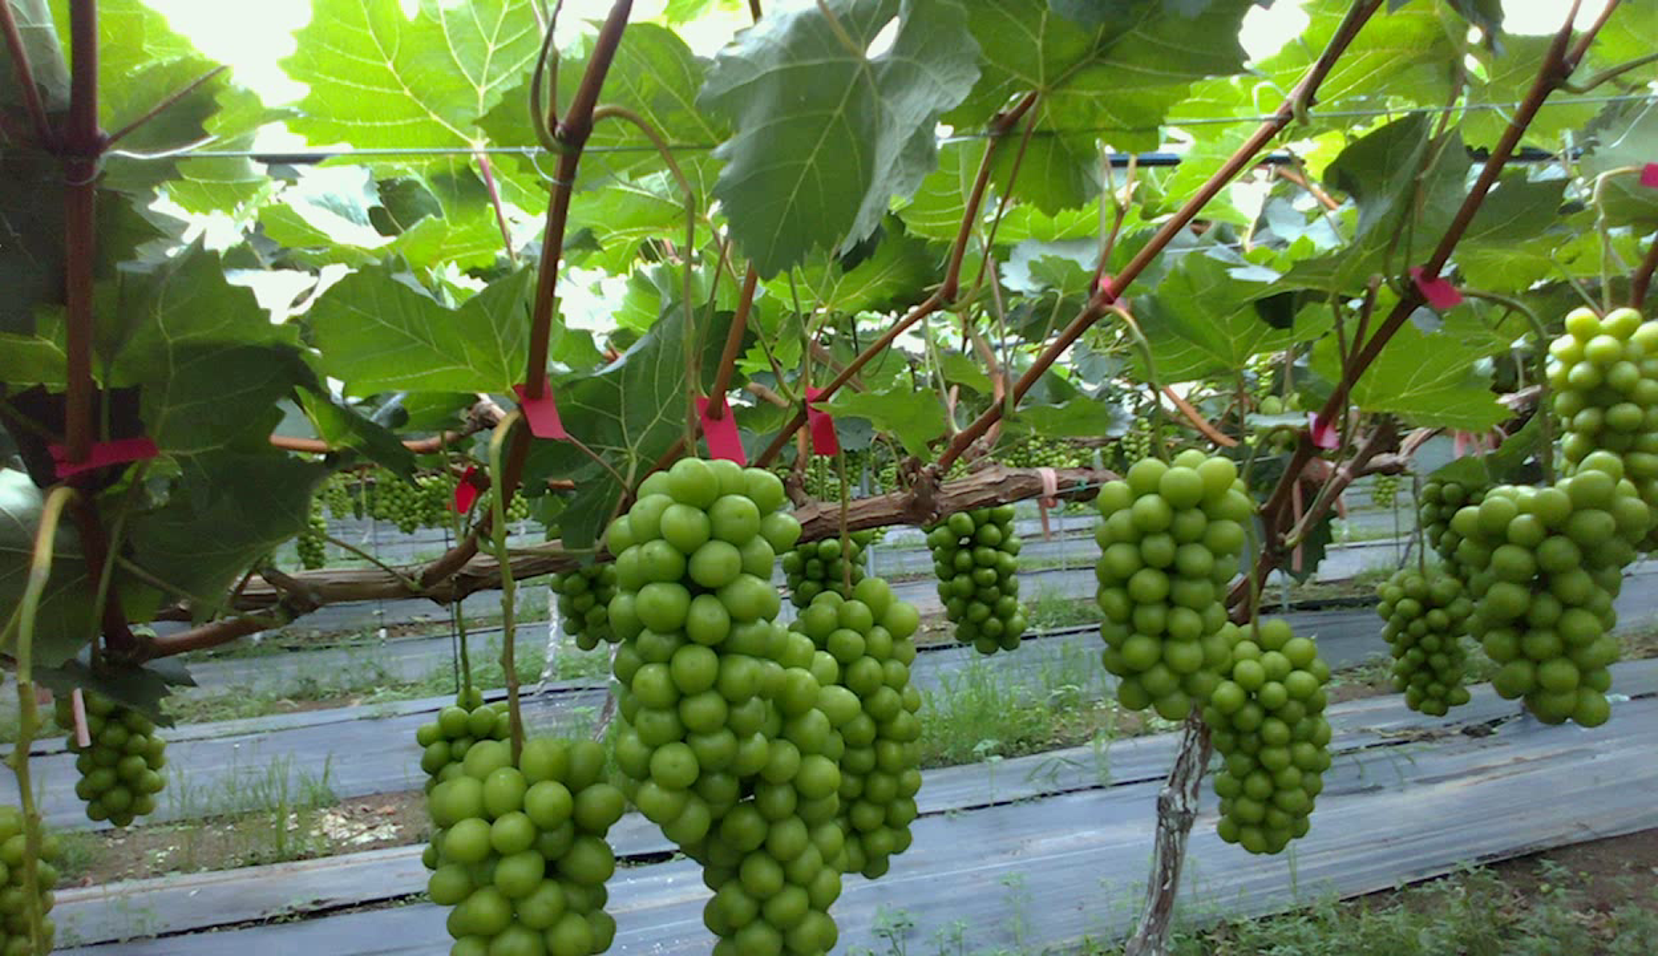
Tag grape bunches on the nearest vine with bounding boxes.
[428,736,626,955]
[786,576,923,879]
[1452,450,1651,728]
[1544,307,1657,551]
[1190,617,1333,855]
[607,457,802,844]
[1093,449,1251,721]
[679,628,861,955]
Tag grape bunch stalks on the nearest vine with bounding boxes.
[1592,165,1642,316]
[1103,304,1172,467]
[489,410,522,770]
[1459,287,1553,487]
[838,453,852,600]
[594,102,697,458]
